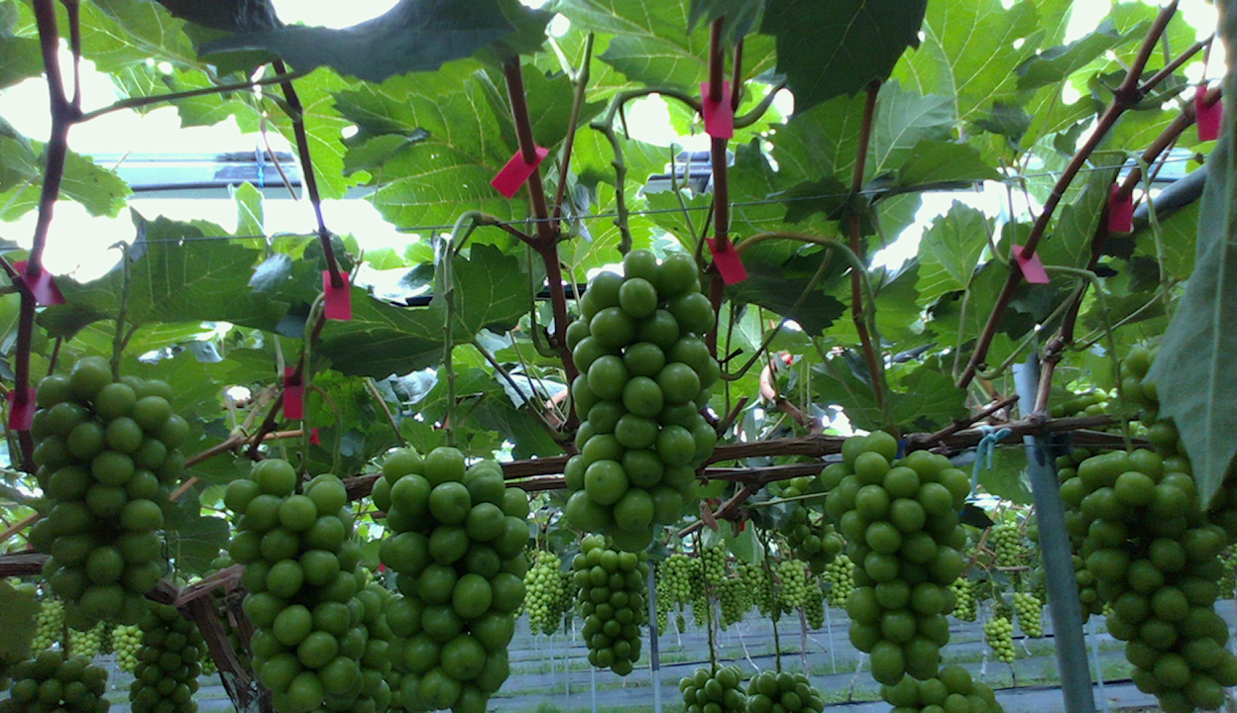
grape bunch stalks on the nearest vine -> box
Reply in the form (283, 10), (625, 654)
(442, 211), (538, 447)
(591, 87), (701, 253)
(111, 240), (131, 381)
(736, 231), (891, 428)
(295, 292), (324, 495)
(1044, 264), (1132, 452)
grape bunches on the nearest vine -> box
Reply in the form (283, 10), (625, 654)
(1060, 448), (1236, 712)
(563, 249), (720, 554)
(31, 354), (189, 632)
(820, 429), (970, 688)
(227, 458), (370, 712)
(370, 449), (531, 712)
